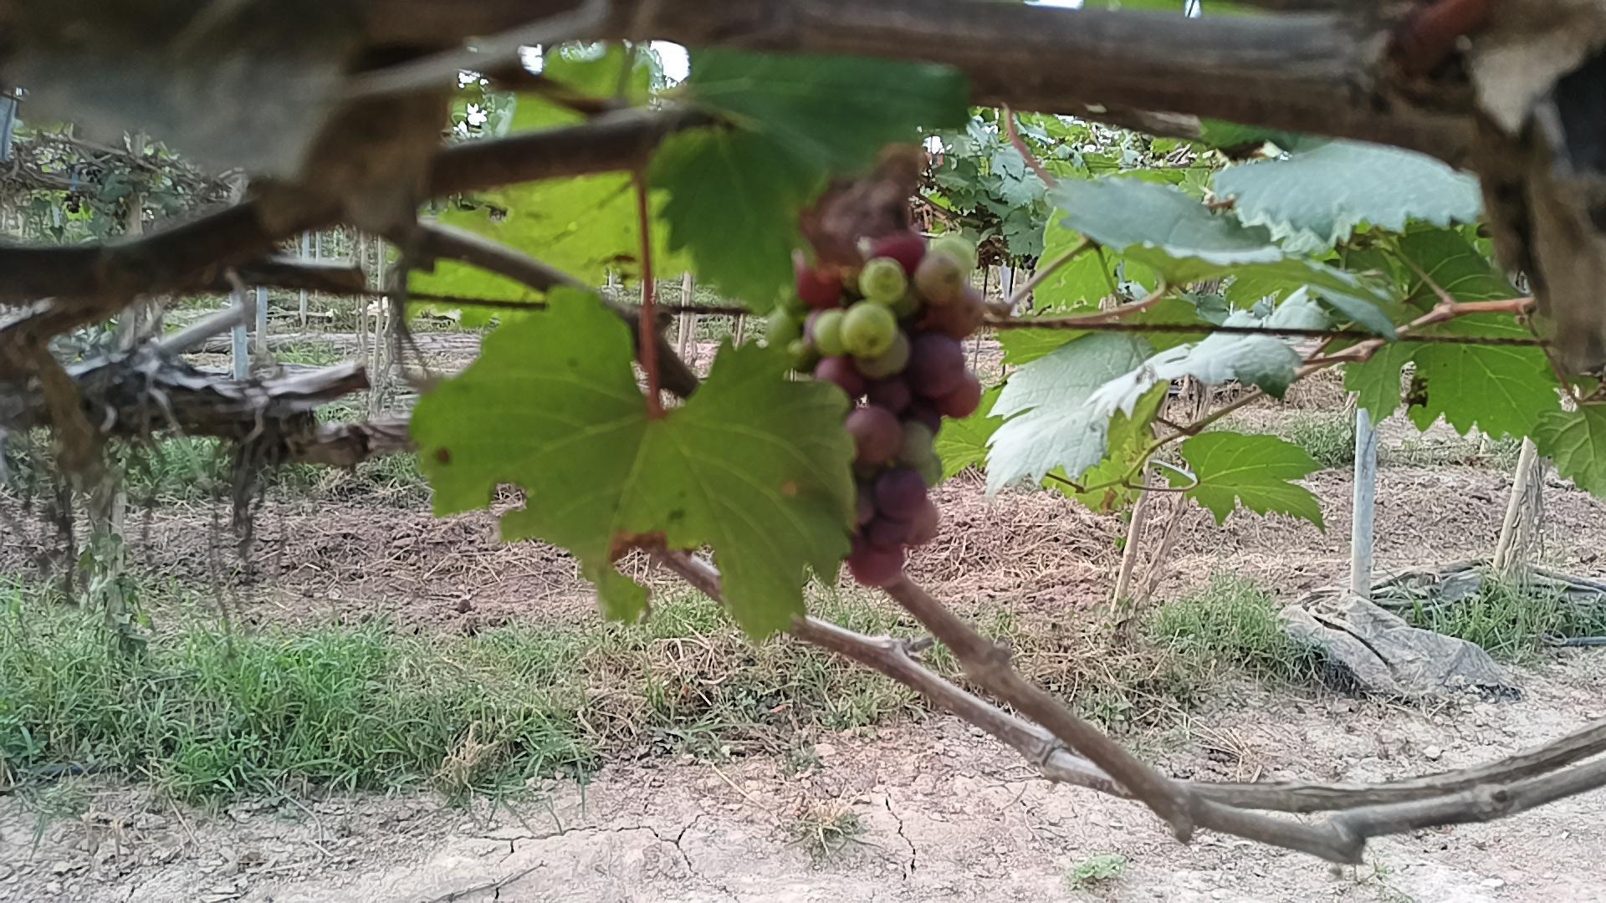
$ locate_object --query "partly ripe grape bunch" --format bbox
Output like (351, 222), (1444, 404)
(762, 224), (983, 586)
